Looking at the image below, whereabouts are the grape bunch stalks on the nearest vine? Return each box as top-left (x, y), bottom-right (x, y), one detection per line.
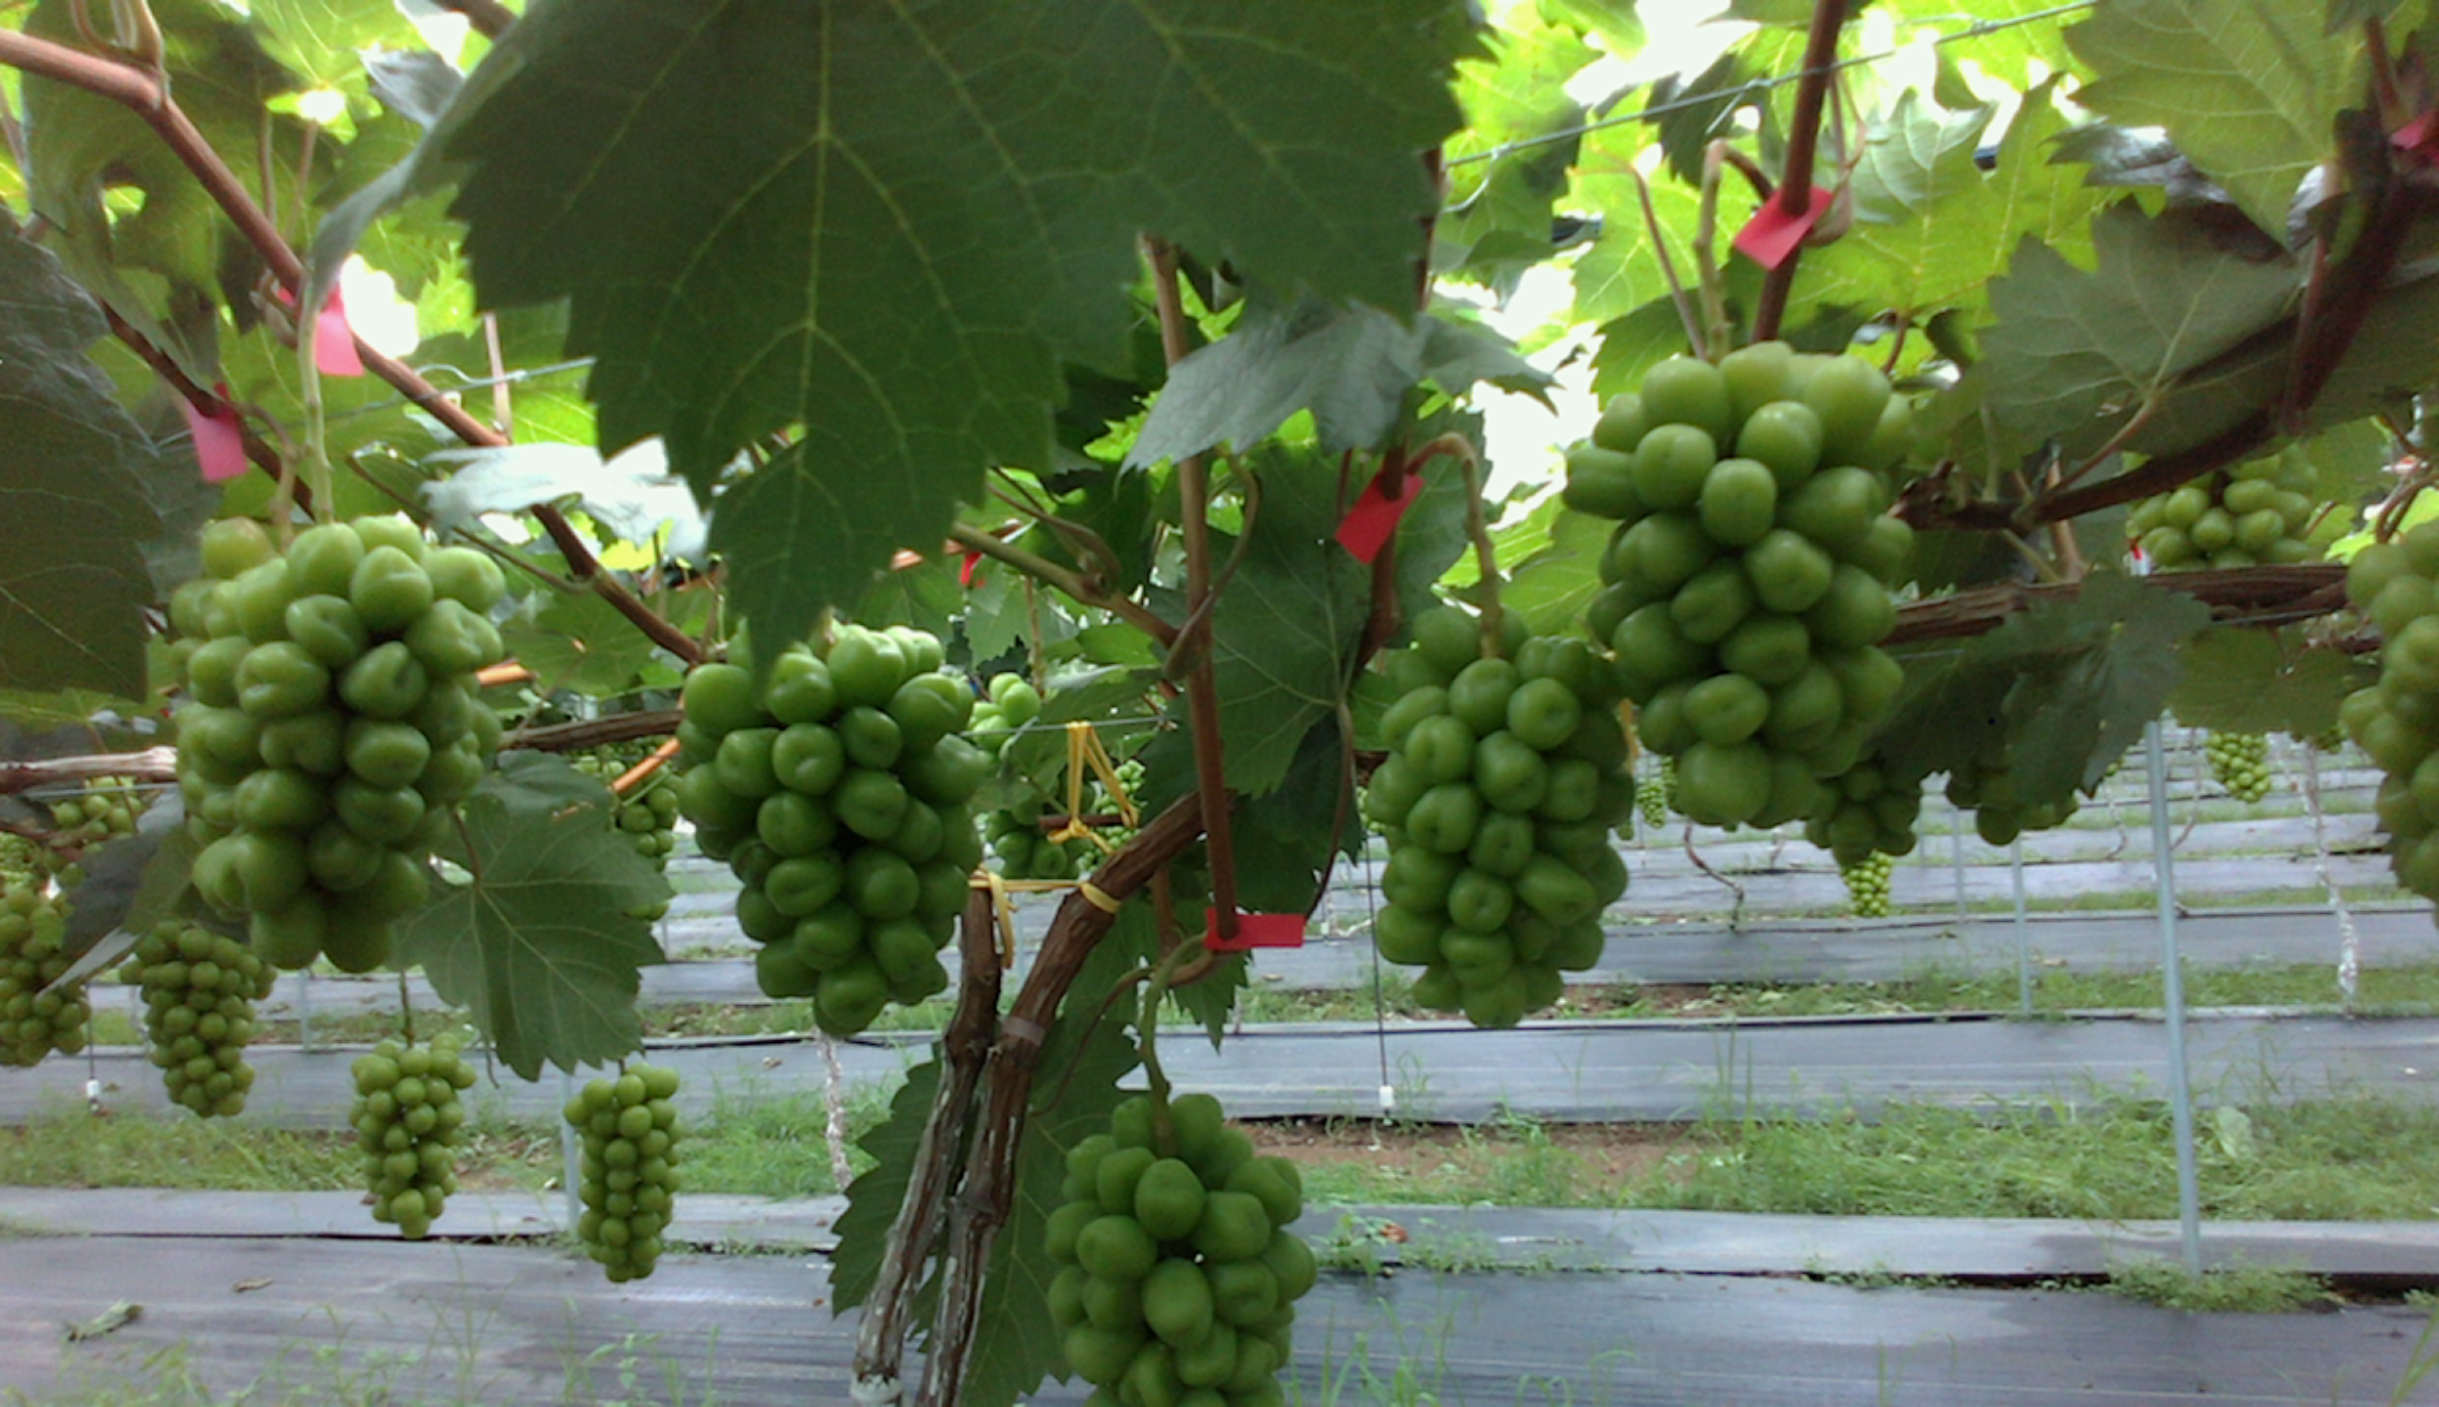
top-left (297, 287), bottom-right (334, 522)
top-left (1694, 139), bottom-right (1771, 356)
top-left (1419, 432), bottom-right (1503, 659)
top-left (1137, 932), bottom-right (1202, 1153)
top-left (819, 614), bottom-right (833, 657)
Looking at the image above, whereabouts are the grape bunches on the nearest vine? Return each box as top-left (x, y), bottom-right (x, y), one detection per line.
top-left (1044, 1094), bottom-right (1319, 1405)
top-left (1562, 342), bottom-right (1915, 829)
top-left (676, 621), bottom-right (989, 1038)
top-left (1360, 608), bottom-right (1638, 1032)
top-left (166, 514), bottom-right (508, 971)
